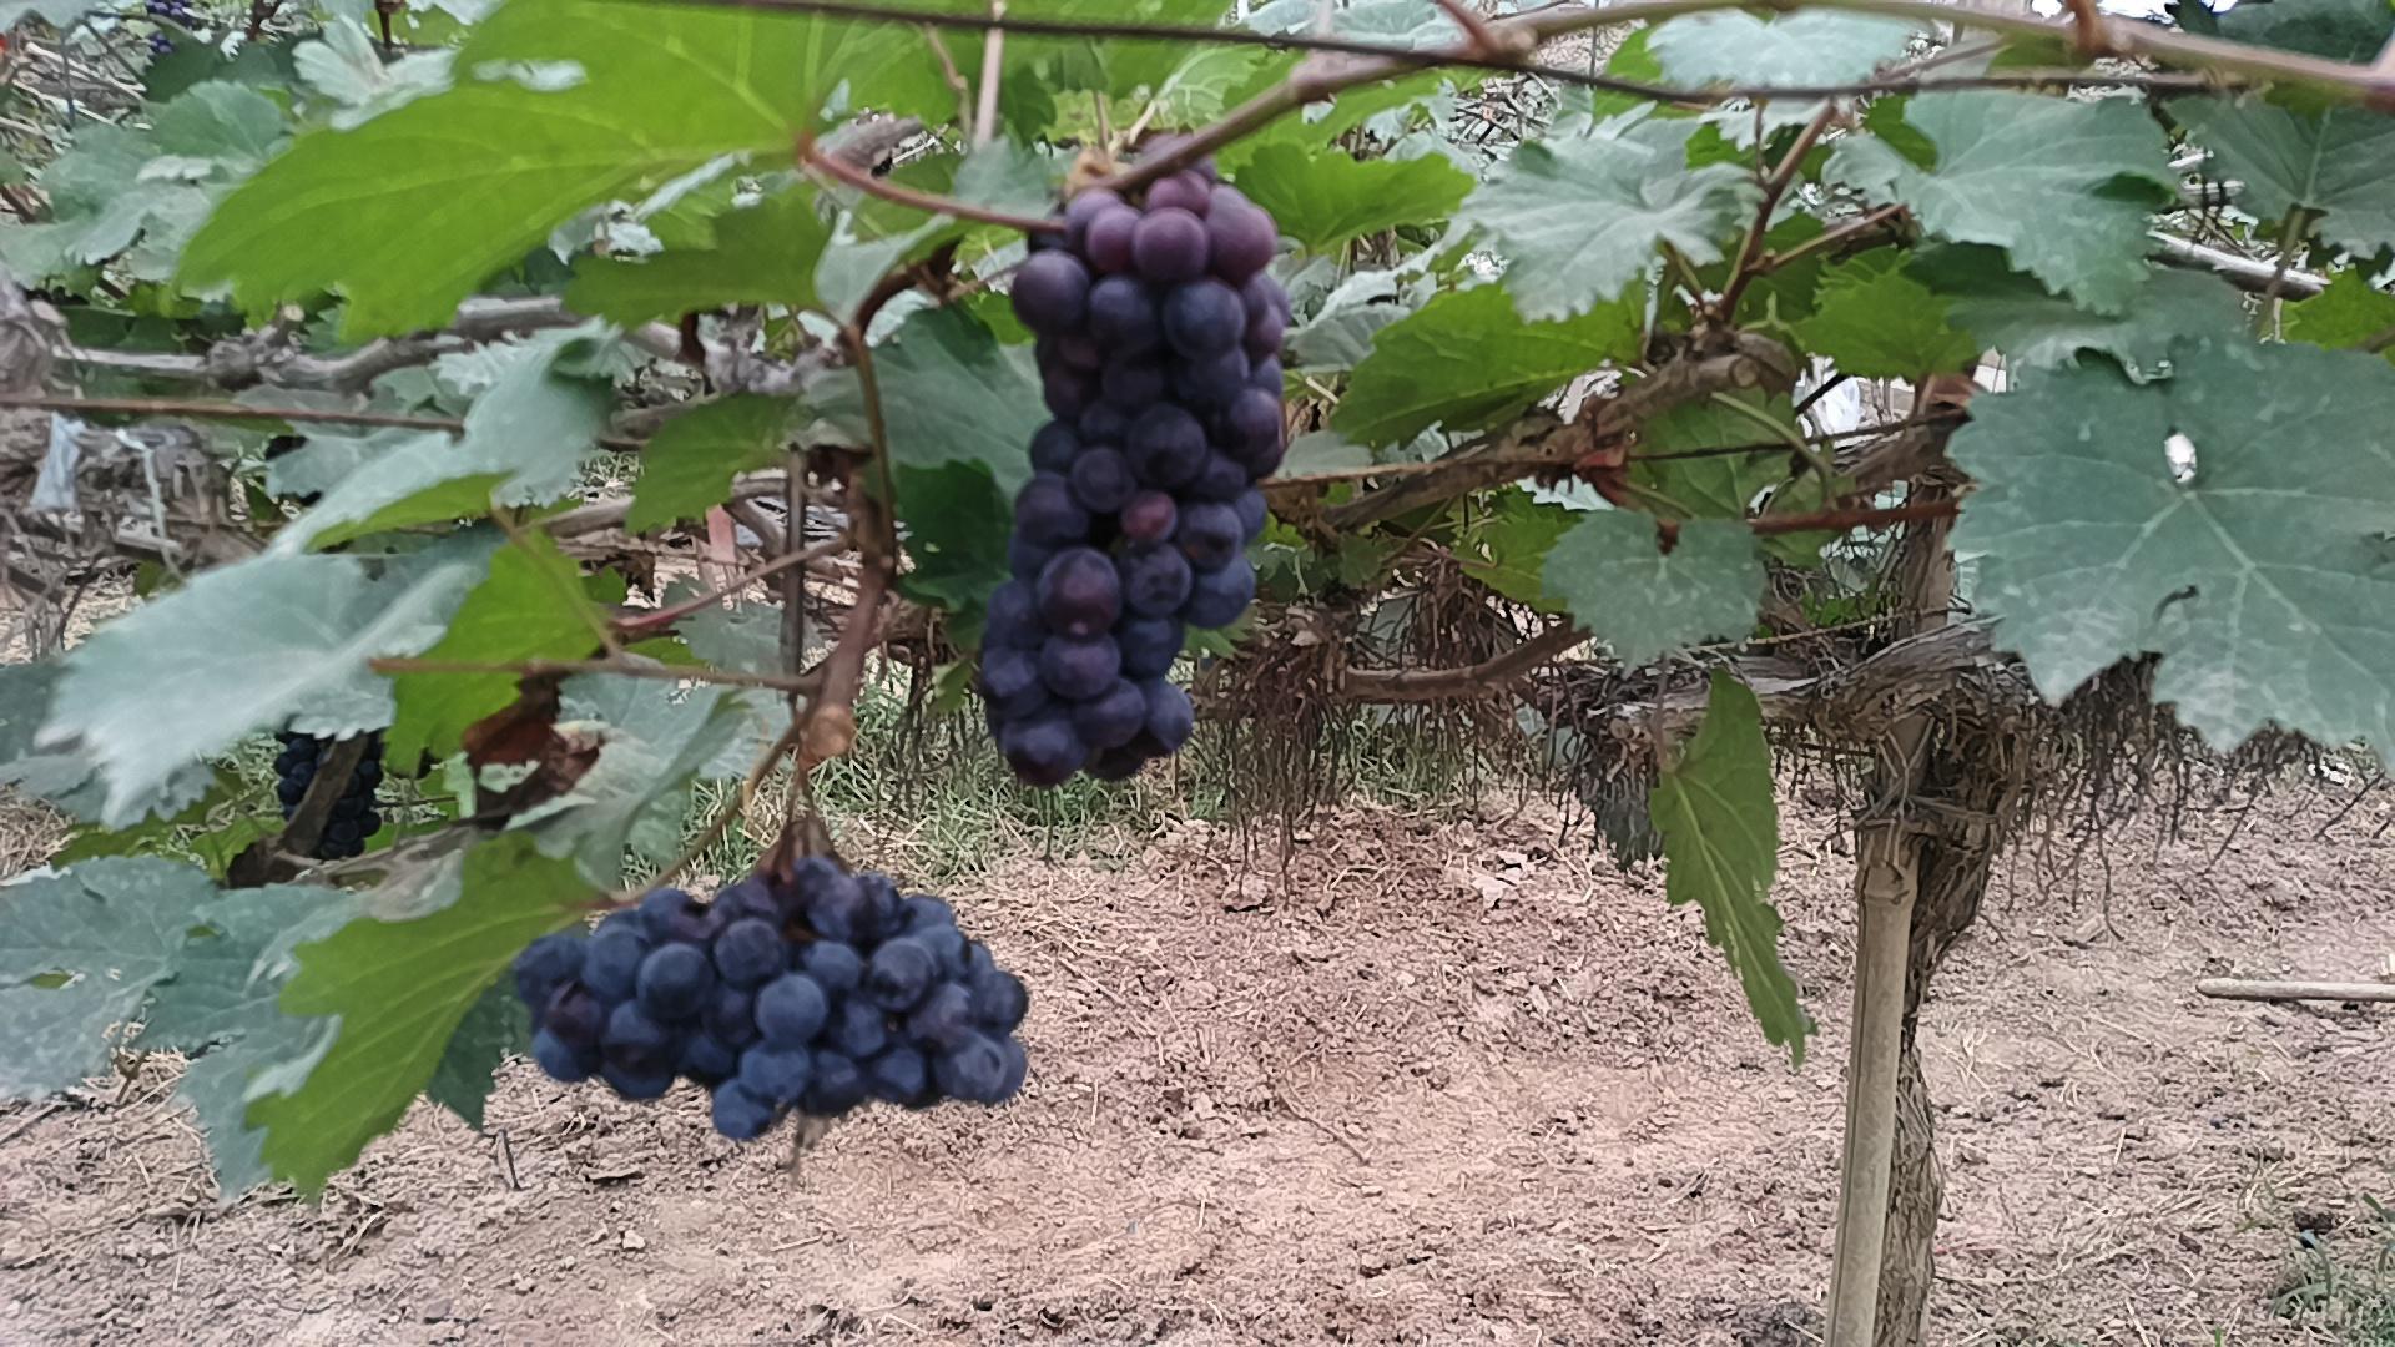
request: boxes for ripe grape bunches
[977,161,1290,785]
[516,853,1028,1139]
[274,732,387,861]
